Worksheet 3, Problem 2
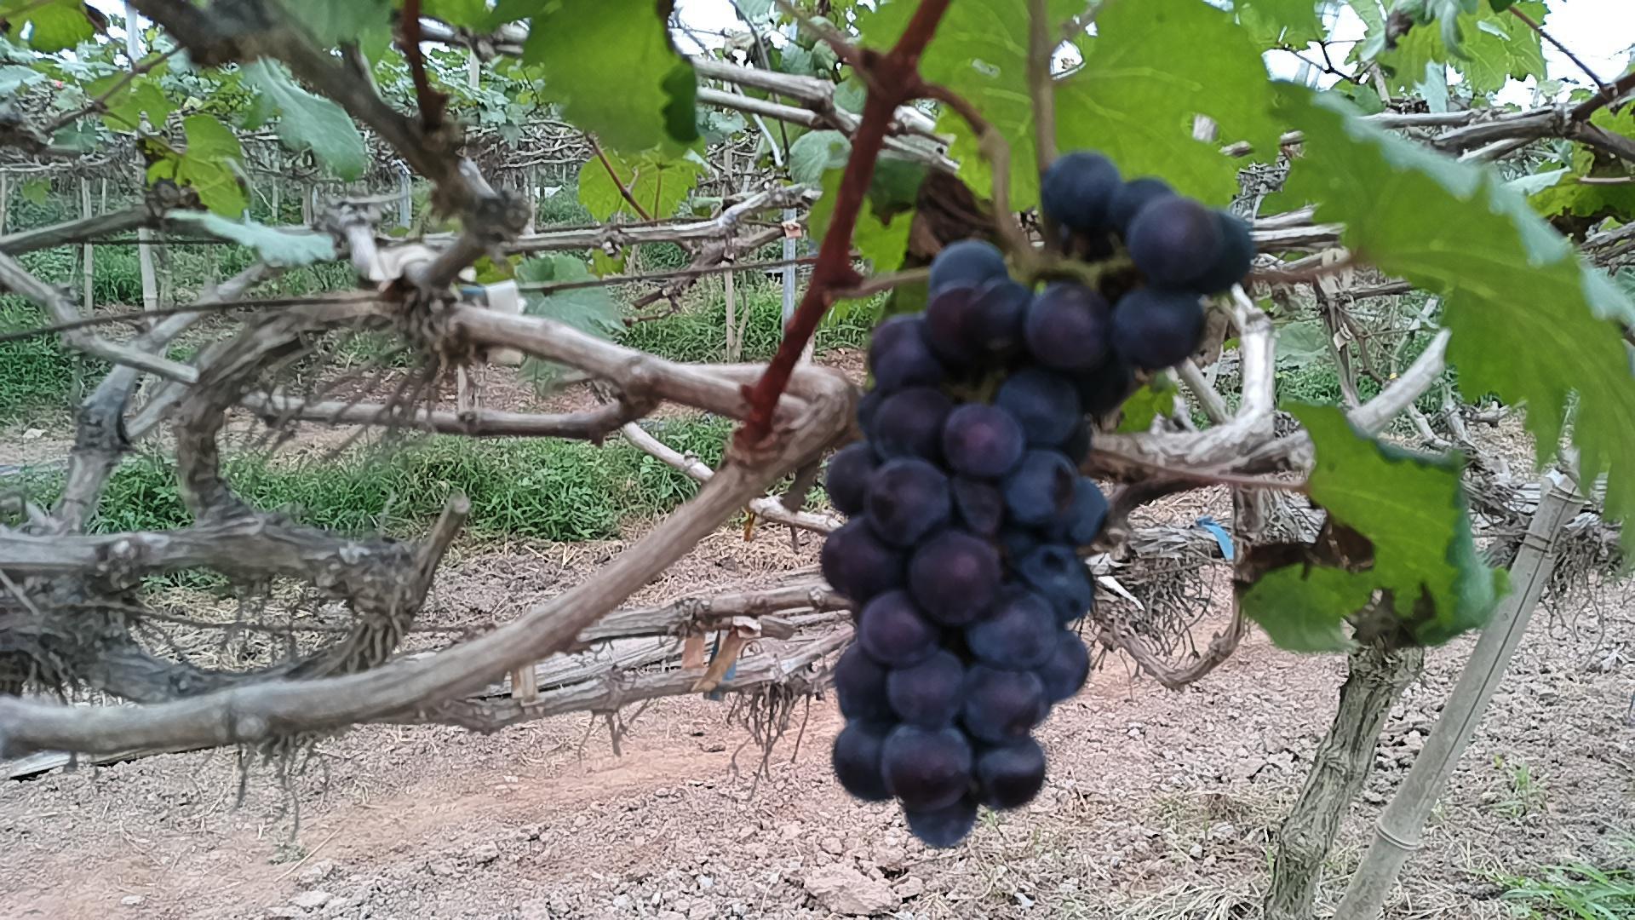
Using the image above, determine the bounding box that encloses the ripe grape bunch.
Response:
[821,152,1253,846]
